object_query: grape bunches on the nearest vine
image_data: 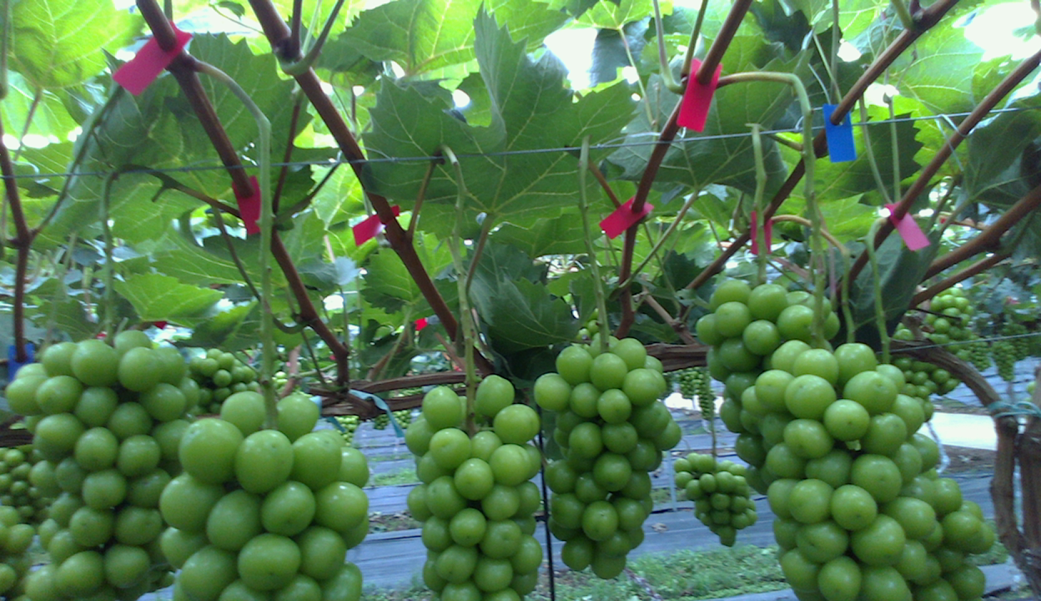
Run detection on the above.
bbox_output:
[404,376,544,600]
[534,336,682,580]
[743,341,994,600]
[5,330,199,600]
[160,390,372,600]
[696,280,838,496]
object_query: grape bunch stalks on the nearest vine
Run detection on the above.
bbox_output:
[751,123,766,284]
[725,71,825,346]
[577,139,609,351]
[99,164,141,346]
[434,144,479,433]
[204,63,281,431]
